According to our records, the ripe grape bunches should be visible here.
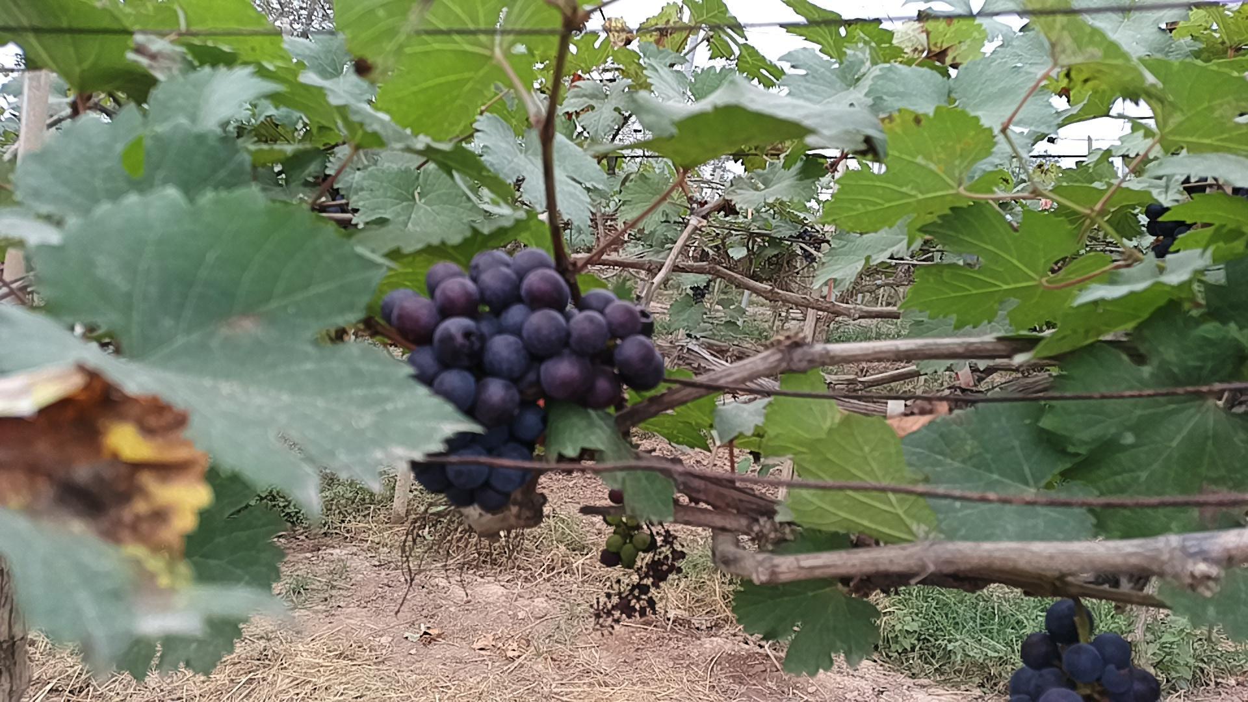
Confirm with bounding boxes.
[1009,598,1160,701]
[382,250,664,514]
